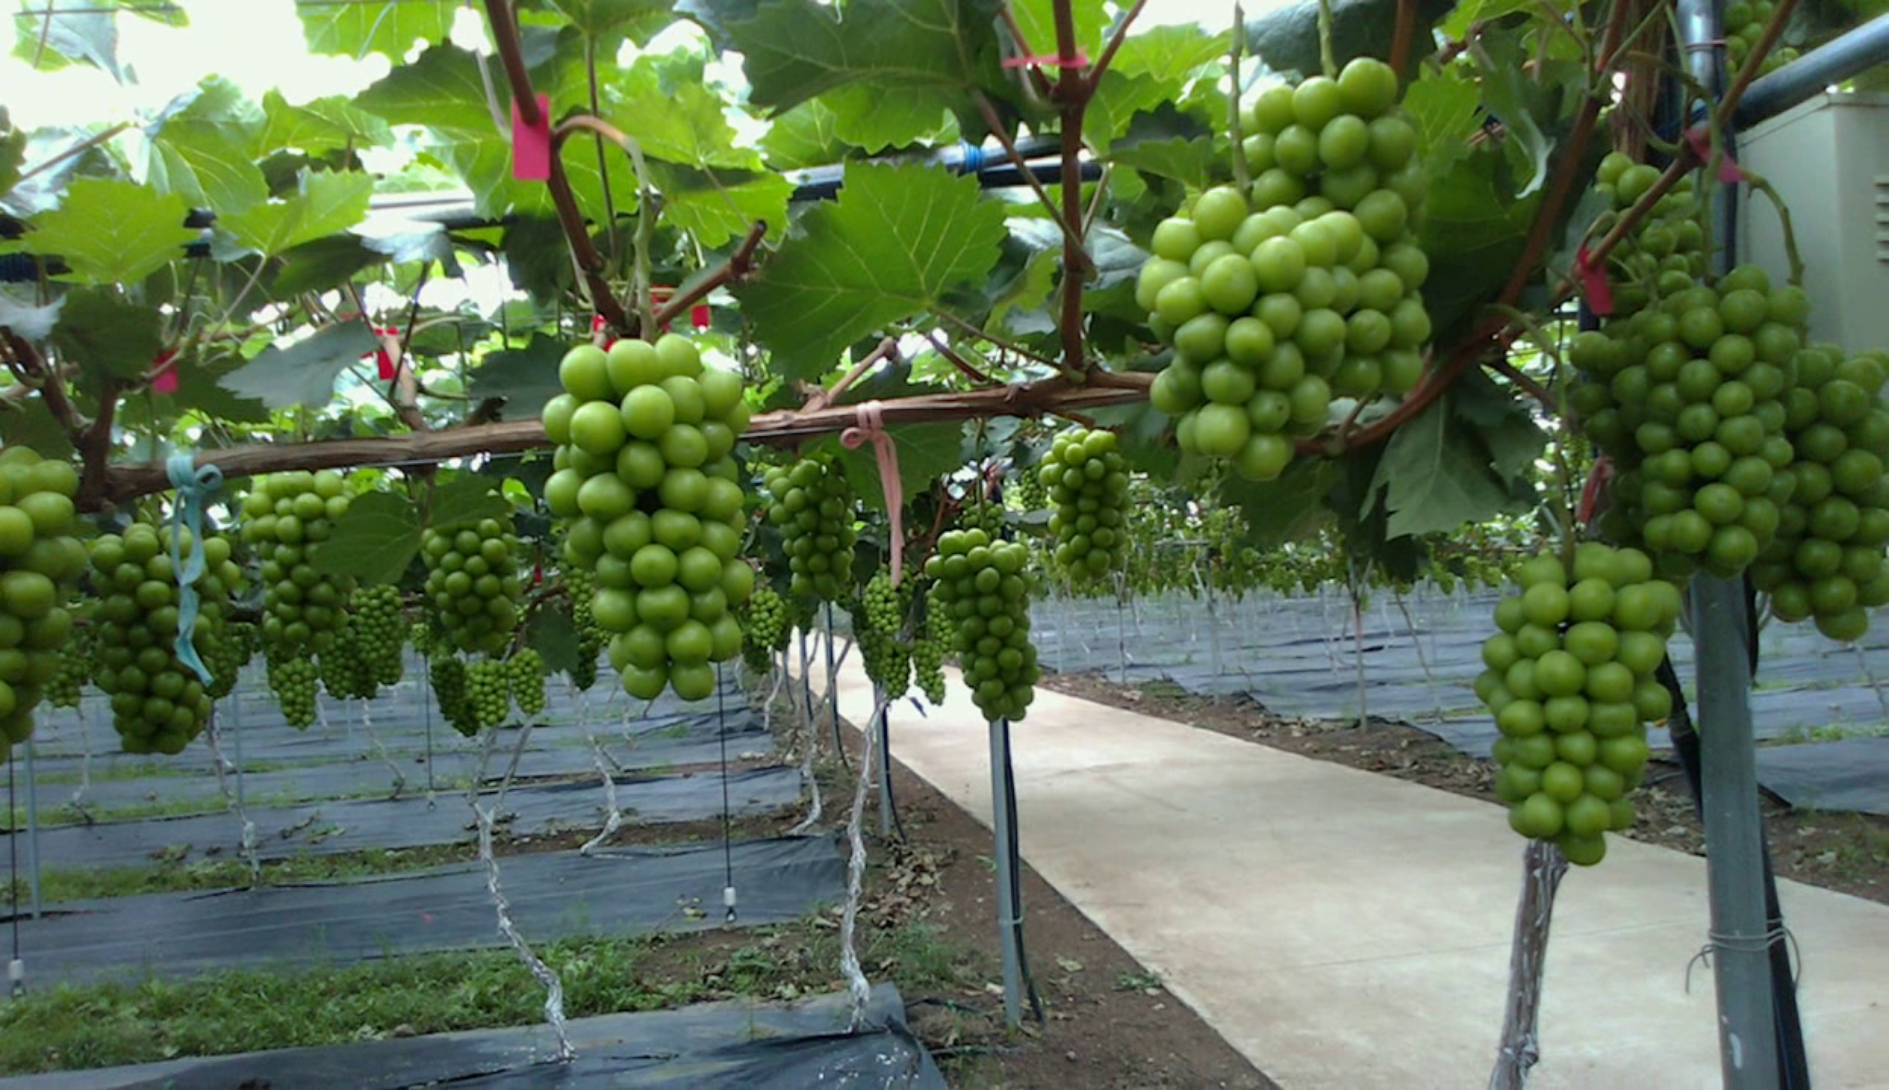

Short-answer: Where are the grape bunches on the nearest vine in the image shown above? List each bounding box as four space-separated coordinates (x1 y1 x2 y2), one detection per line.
1570 300 1688 592
1751 342 1887 642
1135 182 1362 480
0 444 89 761
1240 61 1432 400
542 335 755 702
1612 265 1812 581
1474 540 1683 867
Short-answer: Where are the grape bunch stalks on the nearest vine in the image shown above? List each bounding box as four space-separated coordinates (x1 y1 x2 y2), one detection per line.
1736 167 1806 286
1473 303 1579 586
1586 50 1724 285
1229 3 1253 206
555 115 658 344
1317 0 1337 79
